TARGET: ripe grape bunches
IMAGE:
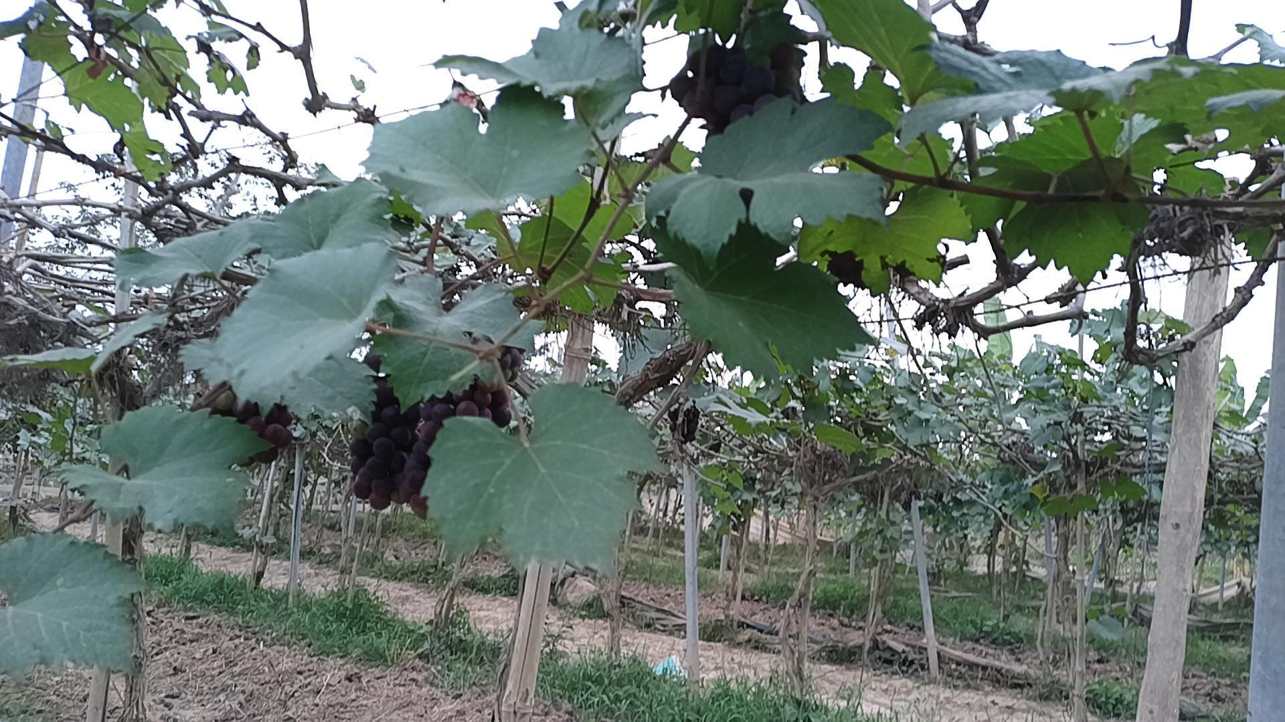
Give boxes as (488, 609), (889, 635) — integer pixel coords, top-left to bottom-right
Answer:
(669, 44), (802, 134)
(350, 346), (524, 518)
(193, 382), (293, 464)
